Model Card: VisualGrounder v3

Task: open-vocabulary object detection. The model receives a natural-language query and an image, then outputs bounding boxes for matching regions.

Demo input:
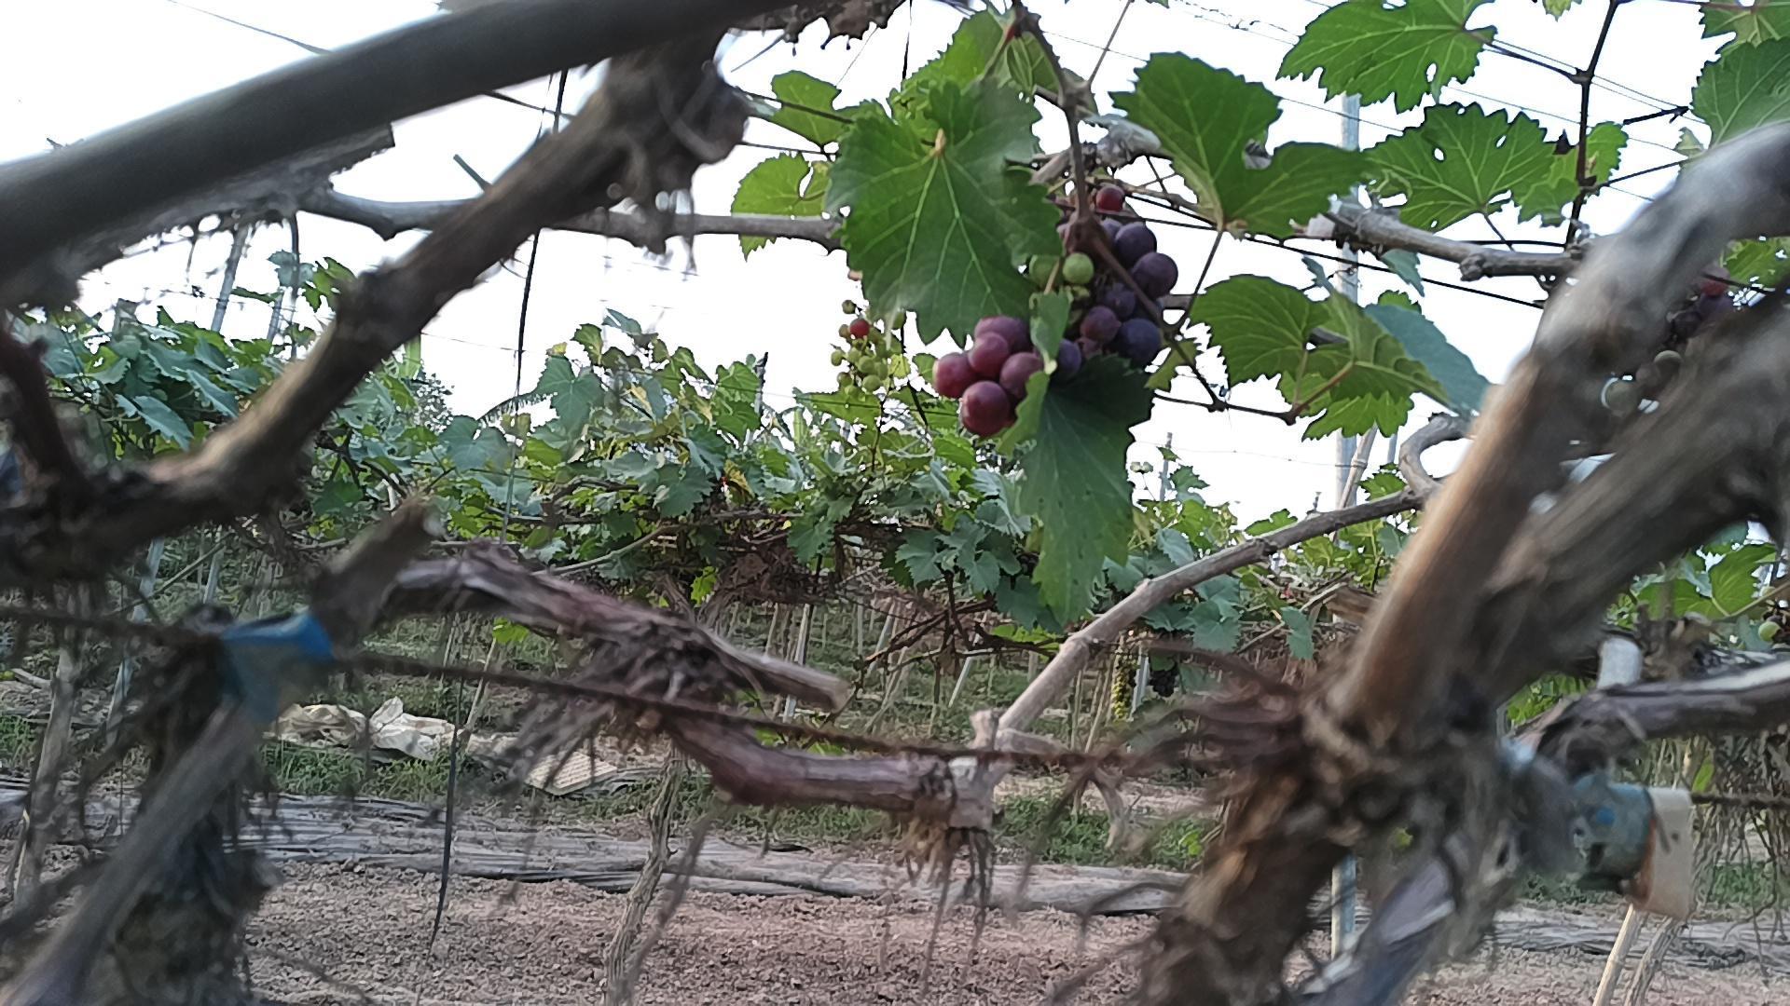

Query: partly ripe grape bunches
[932,184,1179,441]
[831,299,907,399]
